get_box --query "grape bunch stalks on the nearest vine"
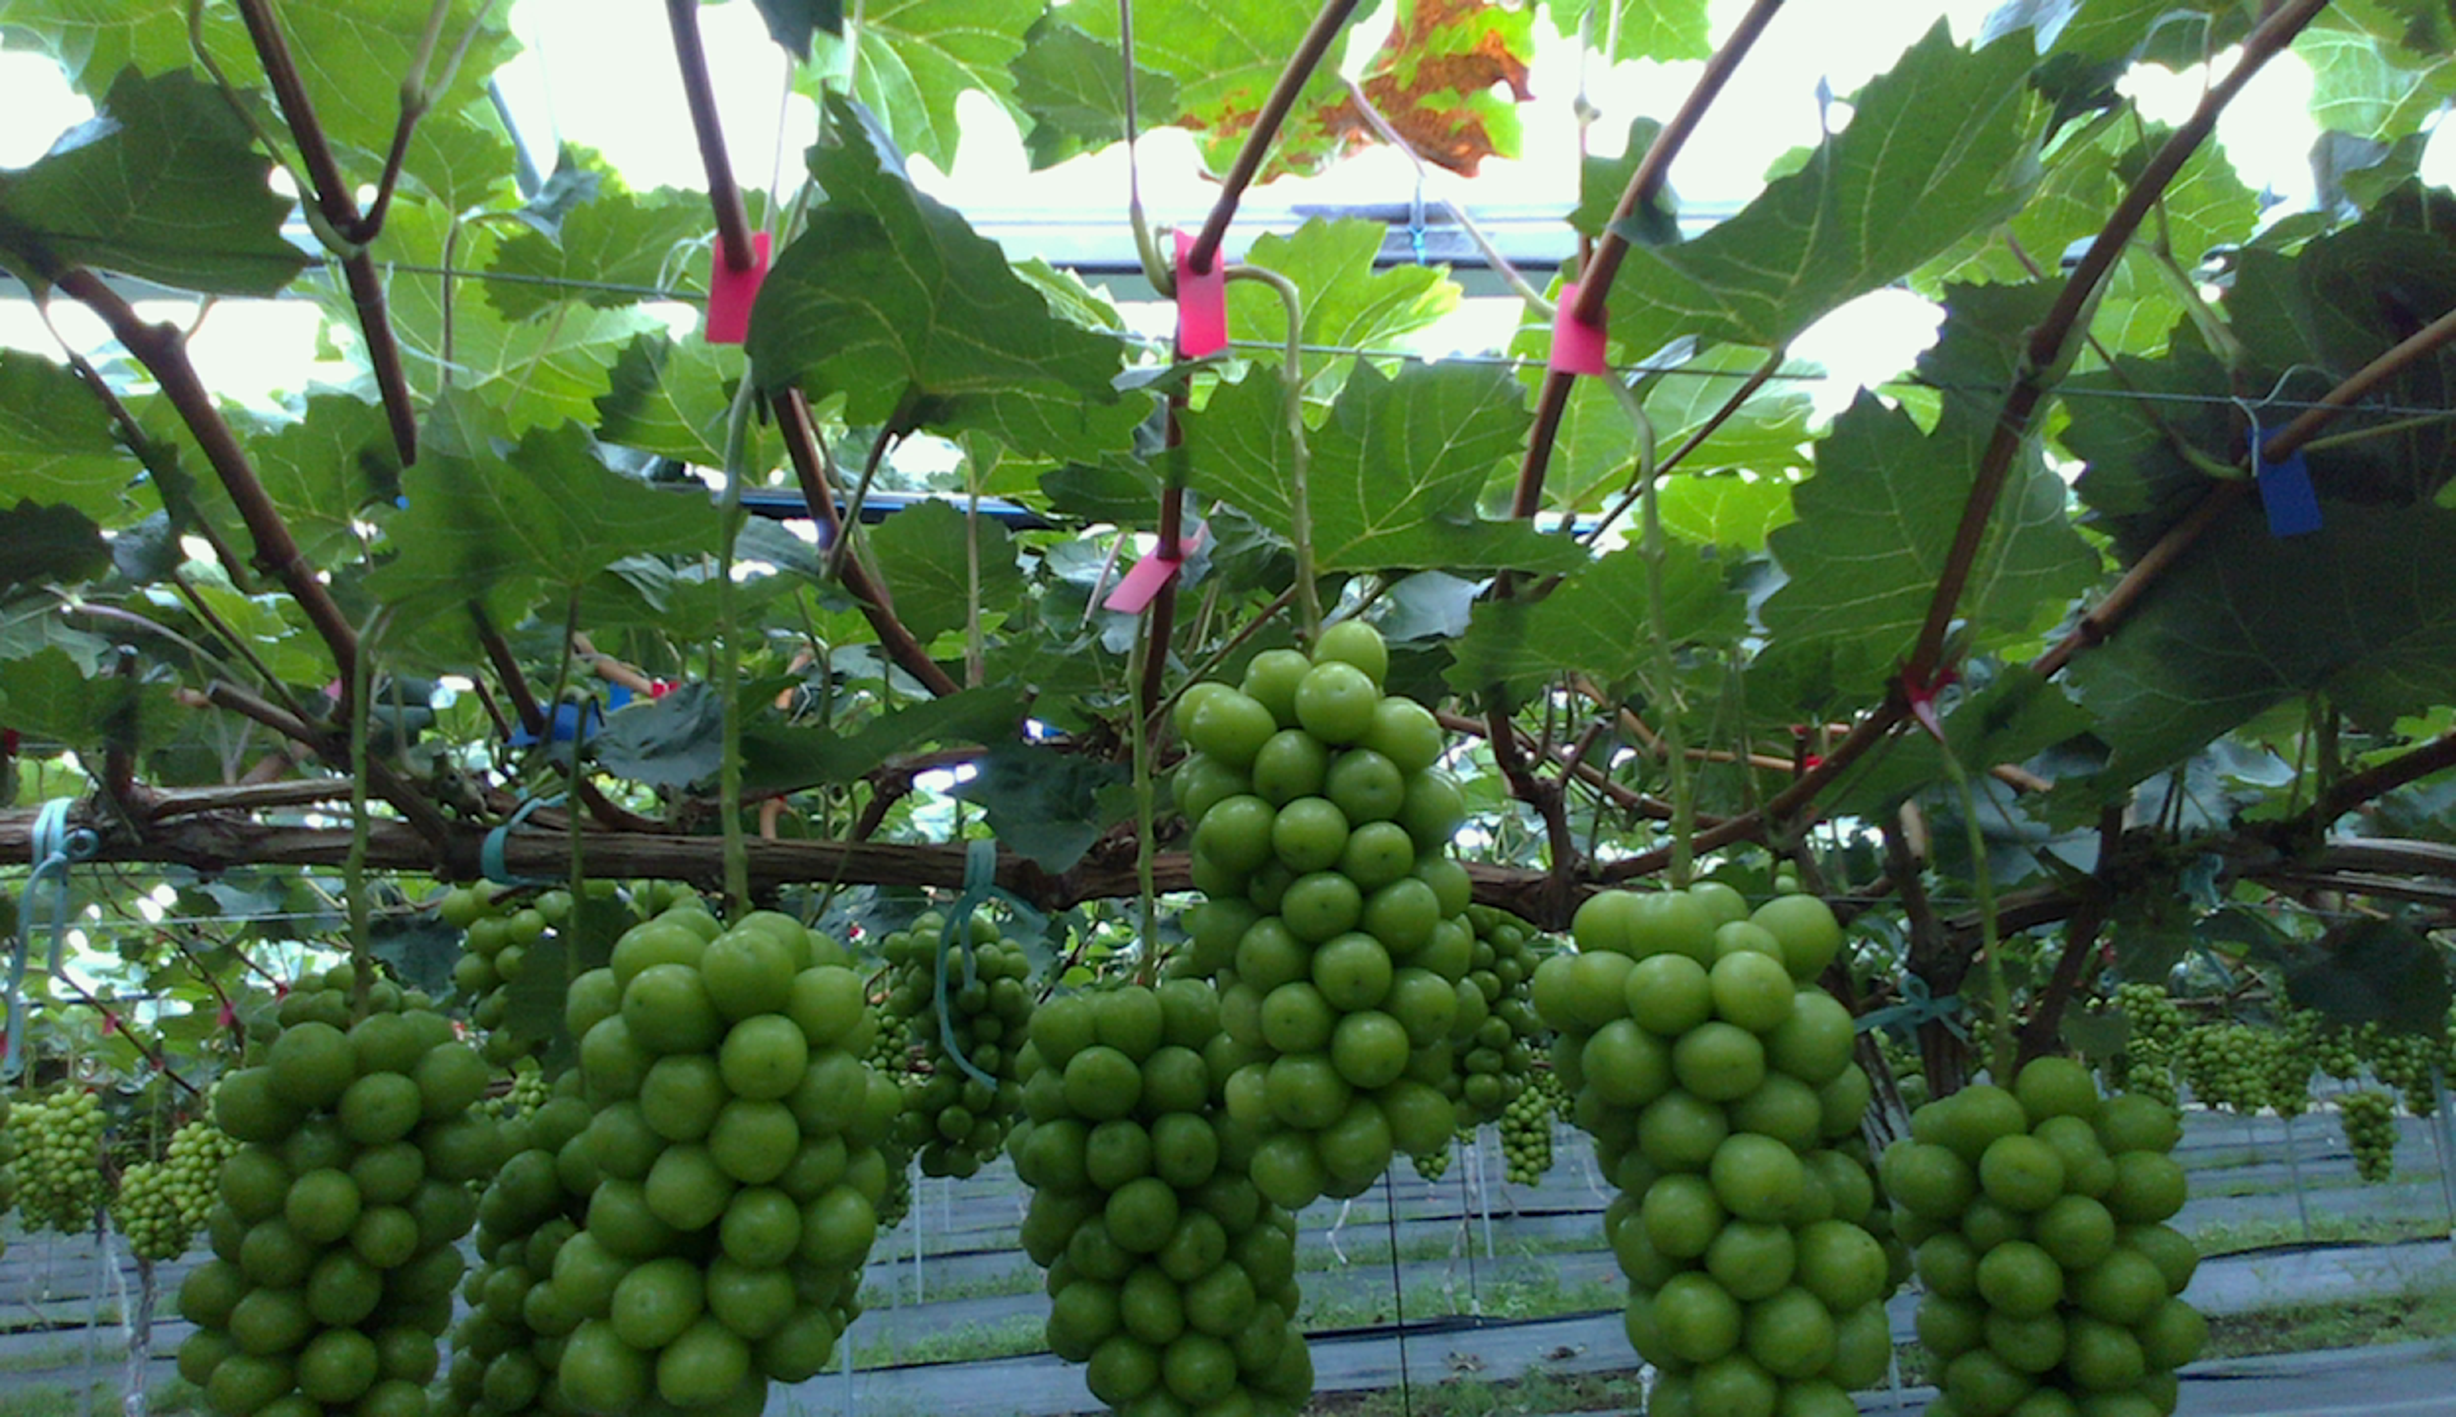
[1909,697,2011,1082]
[1128,614,1157,986]
[1220,266,1320,649]
[718,360,756,921]
[569,691,590,978]
[1602,366,1696,886]
[342,608,390,1021]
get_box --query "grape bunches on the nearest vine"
[169,1010,502,1415]
[427,1069,600,1415]
[1533,884,1891,1415]
[551,905,903,1415]
[1008,974,1311,1415]
[1169,620,1484,1210]
[1879,1057,2206,1415]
